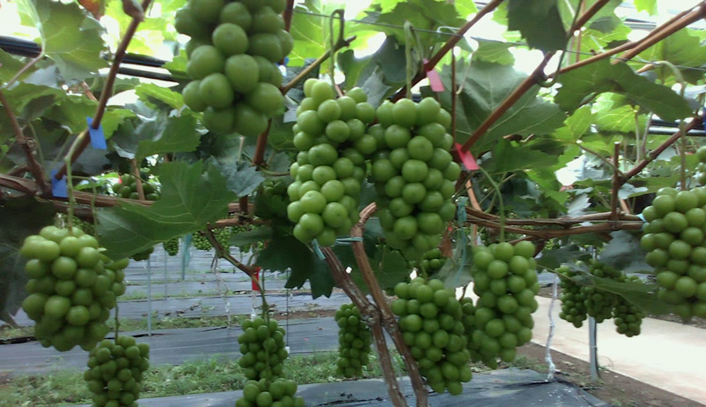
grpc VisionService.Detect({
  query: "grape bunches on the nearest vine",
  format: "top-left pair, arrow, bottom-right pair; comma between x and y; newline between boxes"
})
640,187 -> 705,318
287,77 -> 377,247
469,240 -> 540,362
237,379 -> 304,406
390,276 -> 472,396
368,97 -> 460,262
173,1 -> 294,137
22,226 -> 115,352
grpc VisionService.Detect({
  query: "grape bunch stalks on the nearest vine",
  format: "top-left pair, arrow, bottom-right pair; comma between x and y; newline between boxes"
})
66,134 -> 83,233
639,61 -> 686,190
405,21 -> 414,101
420,266 -> 429,282
479,167 -> 506,241
329,9 -> 345,99
252,273 -> 269,386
